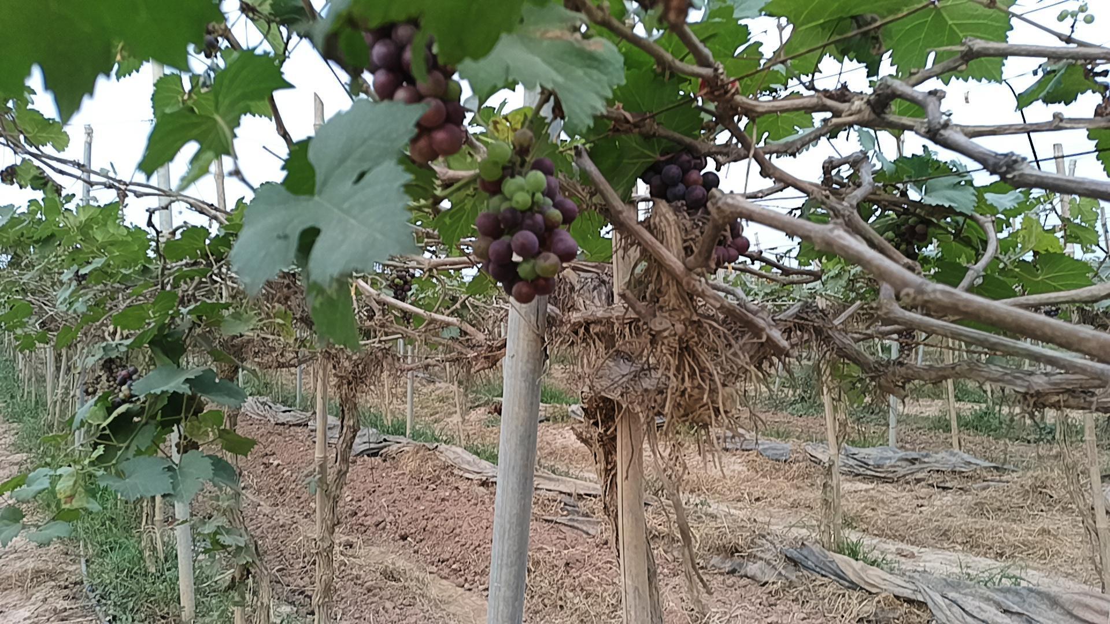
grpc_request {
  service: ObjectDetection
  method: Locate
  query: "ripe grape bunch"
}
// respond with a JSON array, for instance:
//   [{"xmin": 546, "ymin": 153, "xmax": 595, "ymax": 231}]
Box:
[{"xmin": 640, "ymin": 151, "xmax": 751, "ymax": 268}]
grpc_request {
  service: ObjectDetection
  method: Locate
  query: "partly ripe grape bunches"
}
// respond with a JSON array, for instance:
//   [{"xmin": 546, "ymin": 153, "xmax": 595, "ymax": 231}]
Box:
[
  {"xmin": 473, "ymin": 129, "xmax": 582, "ymax": 304},
  {"xmin": 387, "ymin": 268, "xmax": 416, "ymax": 301},
  {"xmin": 883, "ymin": 213, "xmax": 928, "ymax": 259},
  {"xmin": 363, "ymin": 19, "xmax": 465, "ymax": 164}
]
